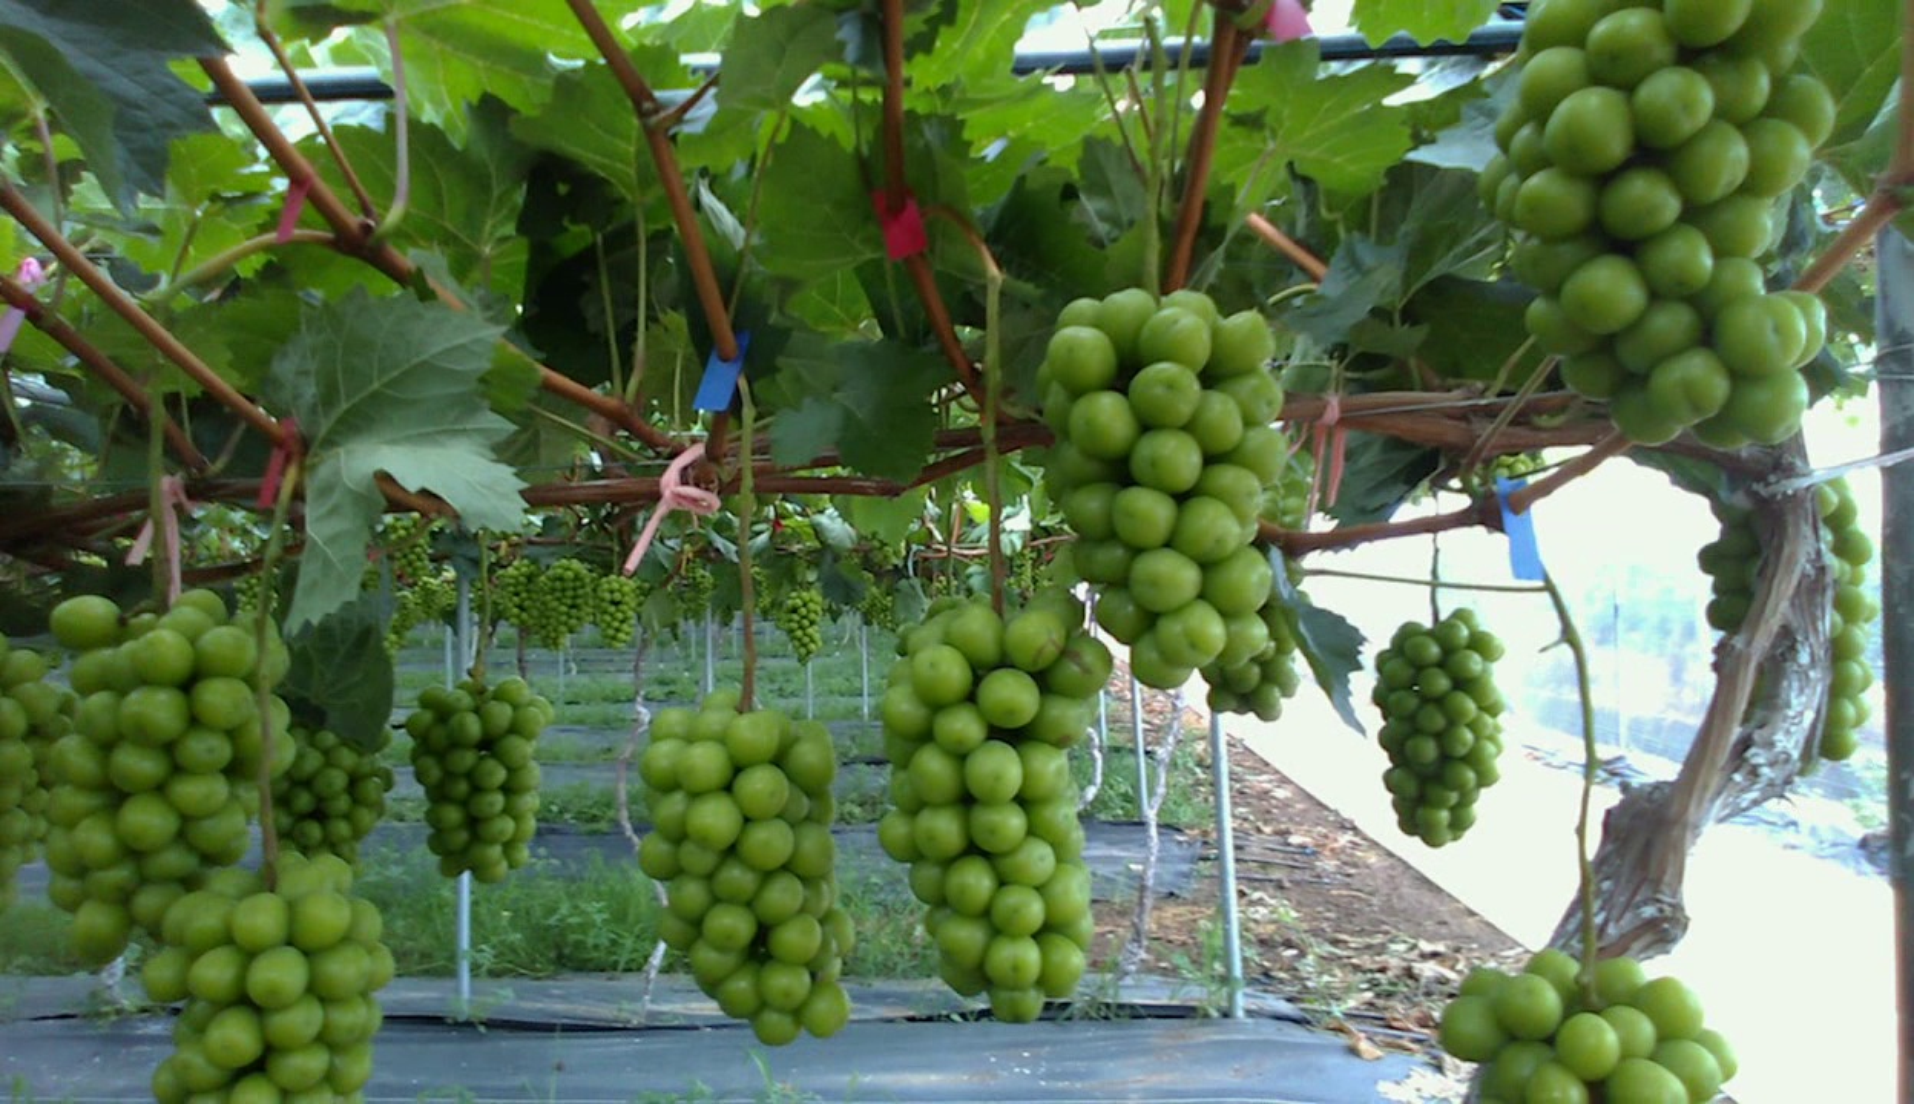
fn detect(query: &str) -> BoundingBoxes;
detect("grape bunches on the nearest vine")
[43,592,256,969]
[633,688,853,1046]
[1035,287,1291,692]
[406,676,554,883]
[1439,949,1733,1102]
[876,586,1113,1024]
[149,853,399,1102]
[1477,0,1834,451]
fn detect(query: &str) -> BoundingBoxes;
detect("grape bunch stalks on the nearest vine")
[147,347,169,613]
[466,531,491,679]
[255,465,298,891]
[1538,575,1601,1009]
[1144,17,1170,304]
[925,204,1005,615]
[736,373,756,711]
